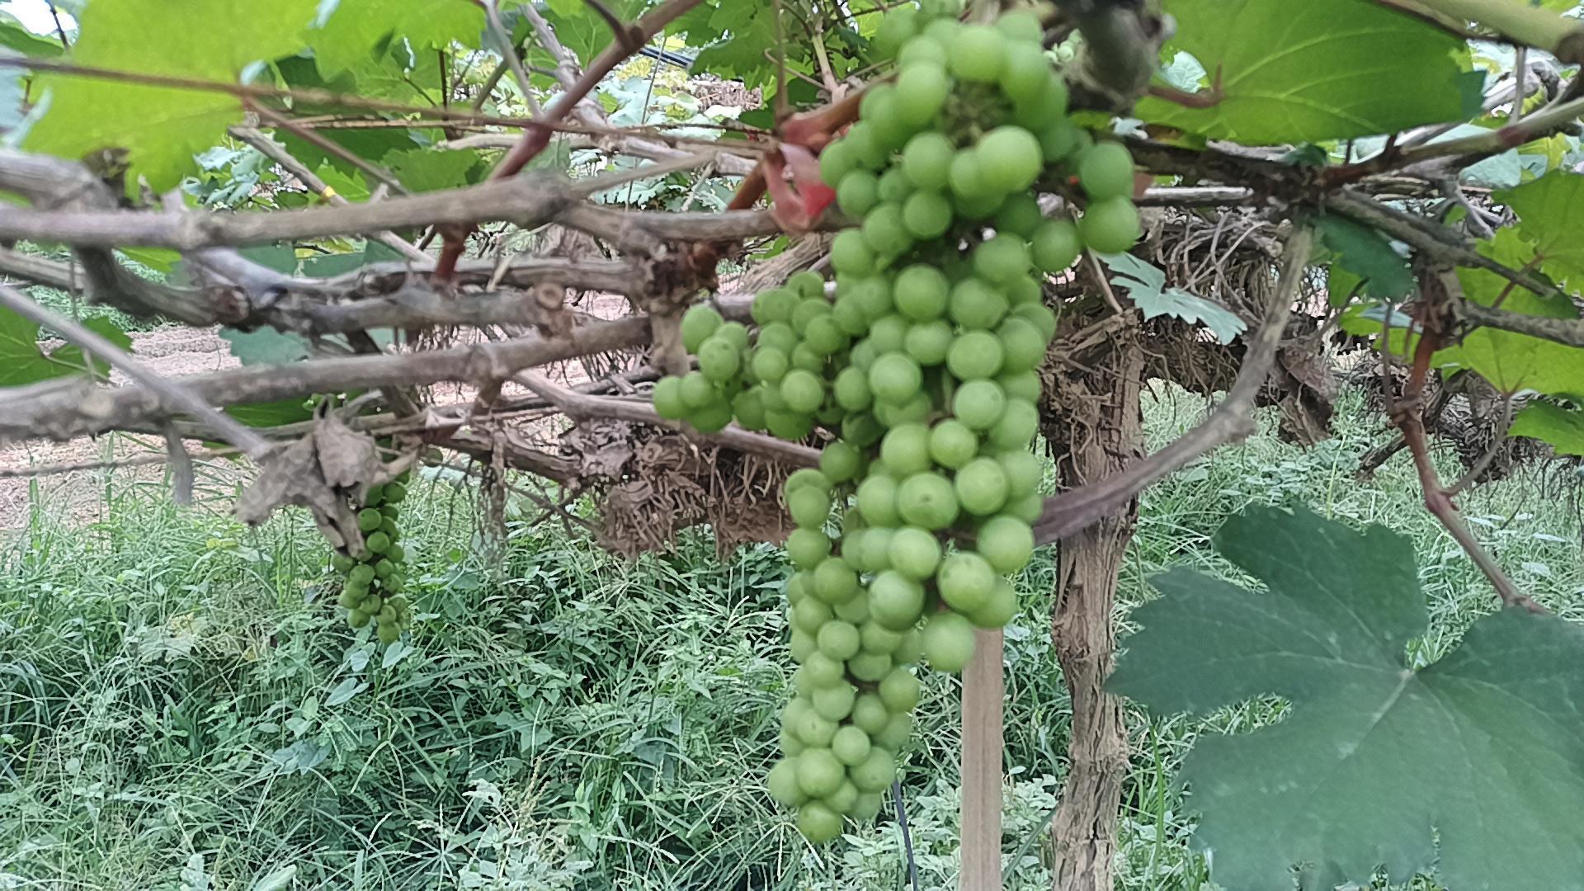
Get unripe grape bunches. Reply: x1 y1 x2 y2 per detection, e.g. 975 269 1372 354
648 0 1139 841
333 482 409 646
